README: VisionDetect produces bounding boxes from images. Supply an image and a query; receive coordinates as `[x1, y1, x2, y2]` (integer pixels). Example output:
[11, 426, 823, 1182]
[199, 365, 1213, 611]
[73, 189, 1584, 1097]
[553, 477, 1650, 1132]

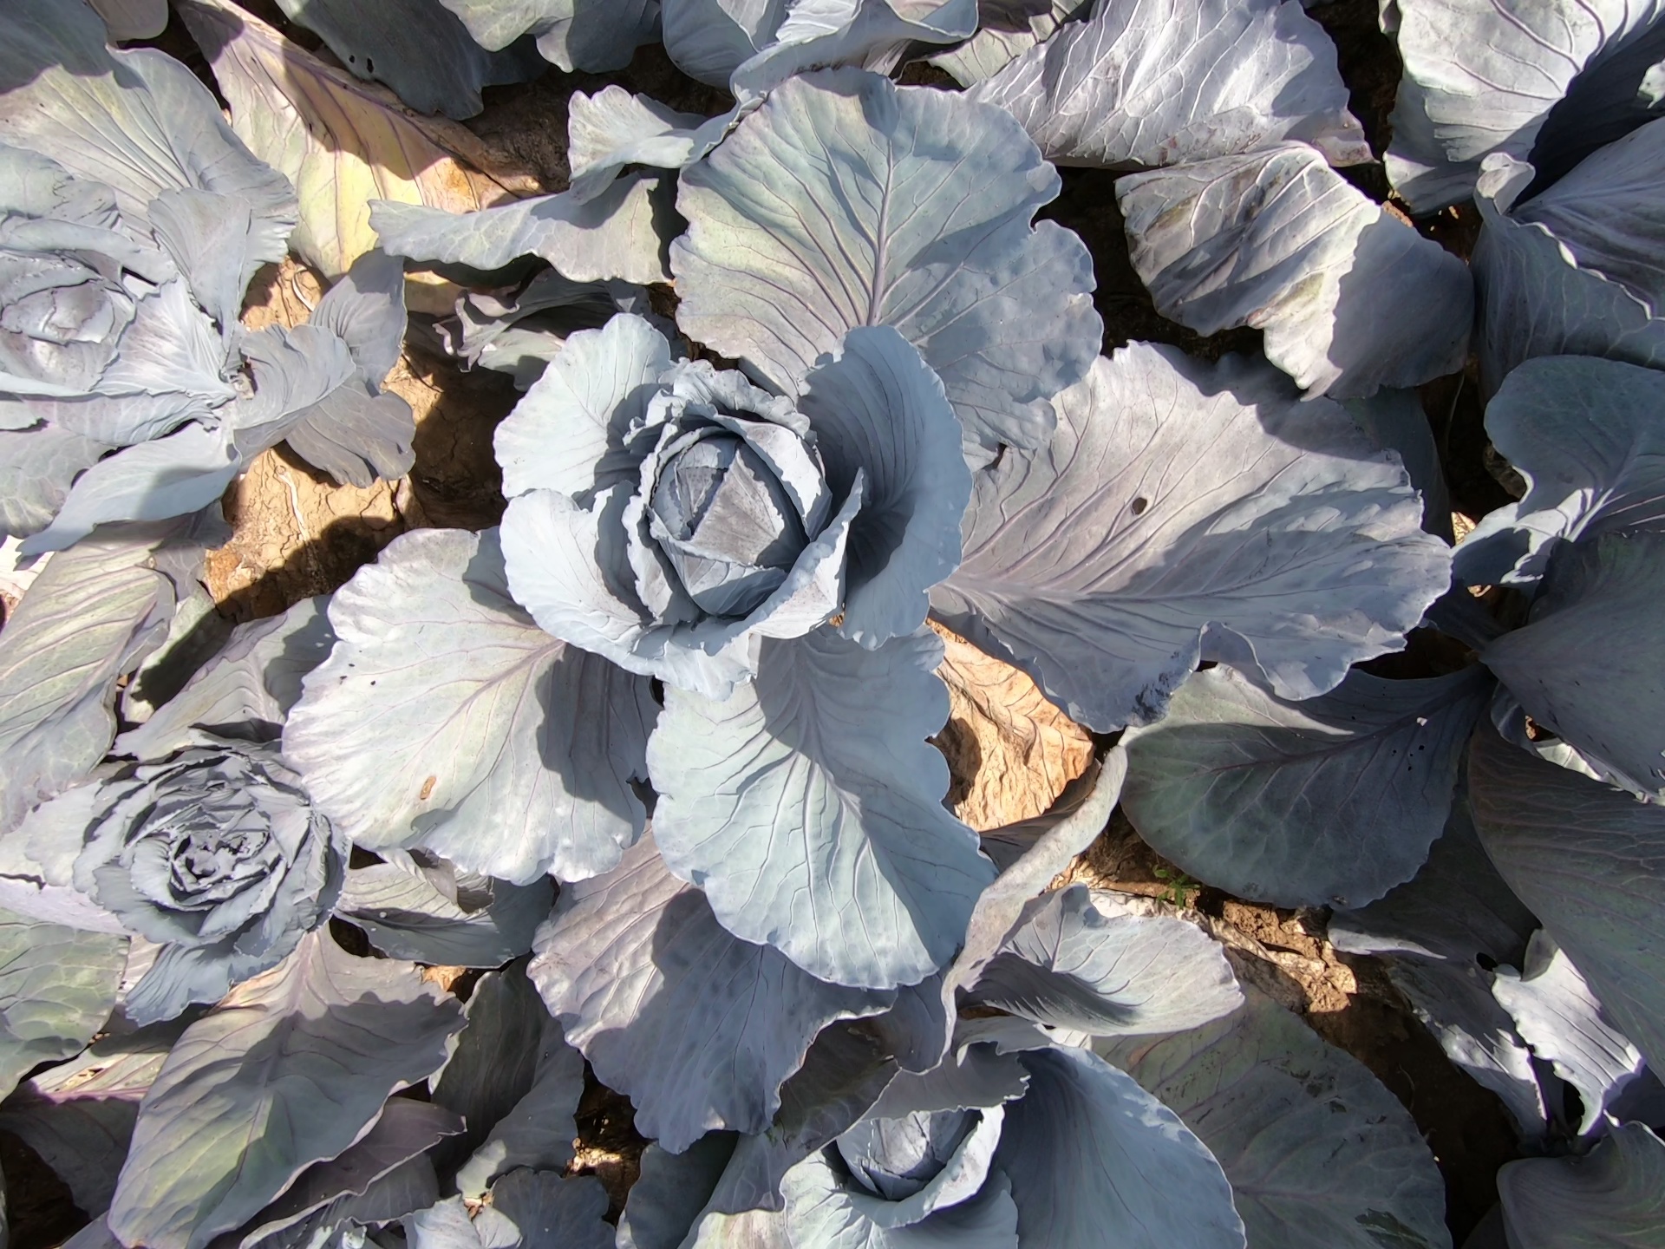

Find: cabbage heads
[140, 781, 293, 906]
[833, 1046, 994, 1201]
[1, 275, 172, 422]
[651, 428, 827, 620]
